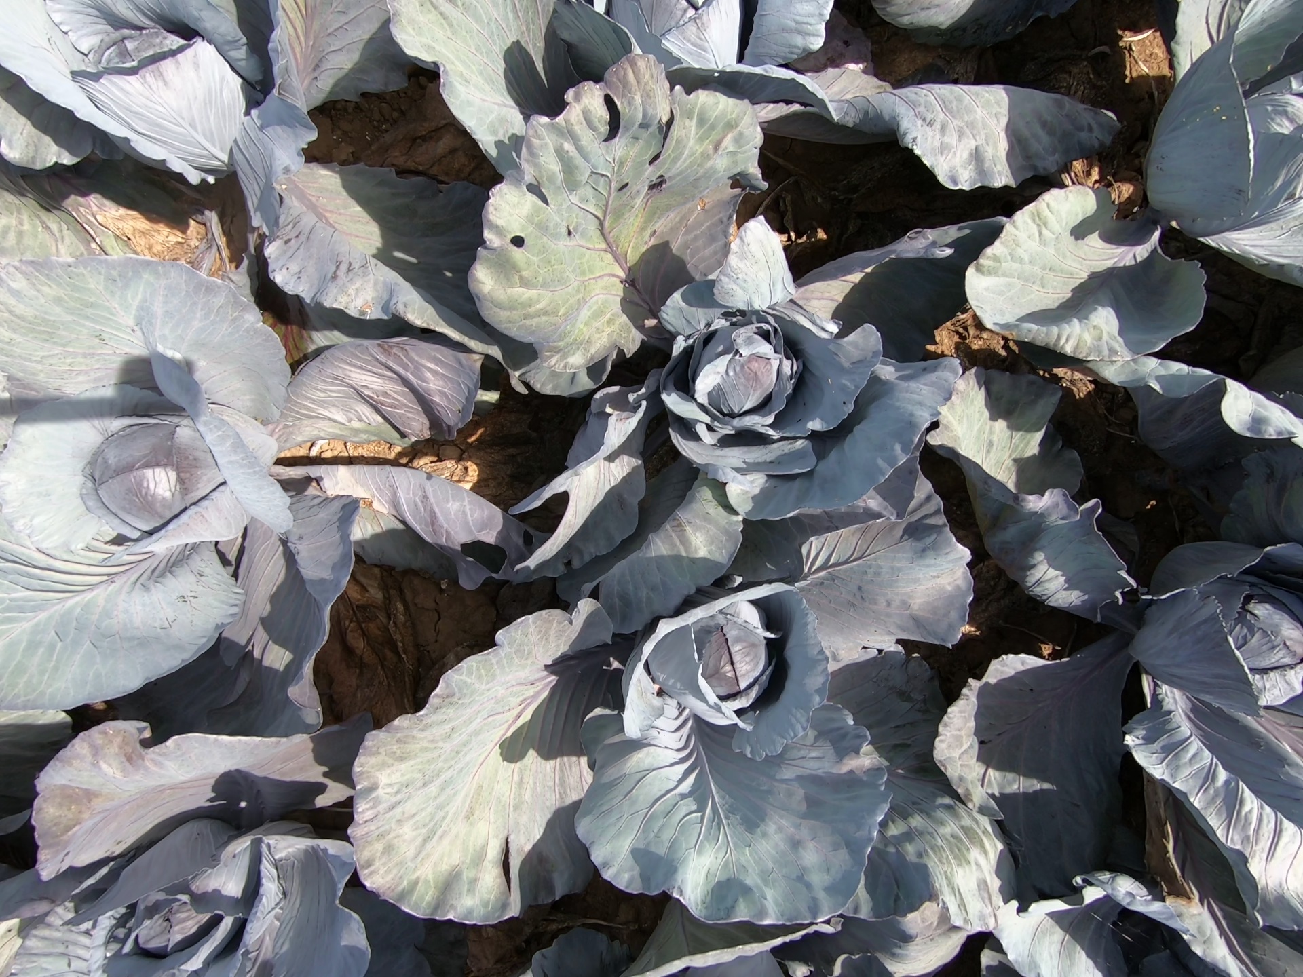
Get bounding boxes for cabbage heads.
[132,835,248,960]
[91,415,255,540]
[83,31,243,163]
[1164,569,1301,704]
[609,1,741,86]
[696,326,781,419]
[664,607,772,714]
